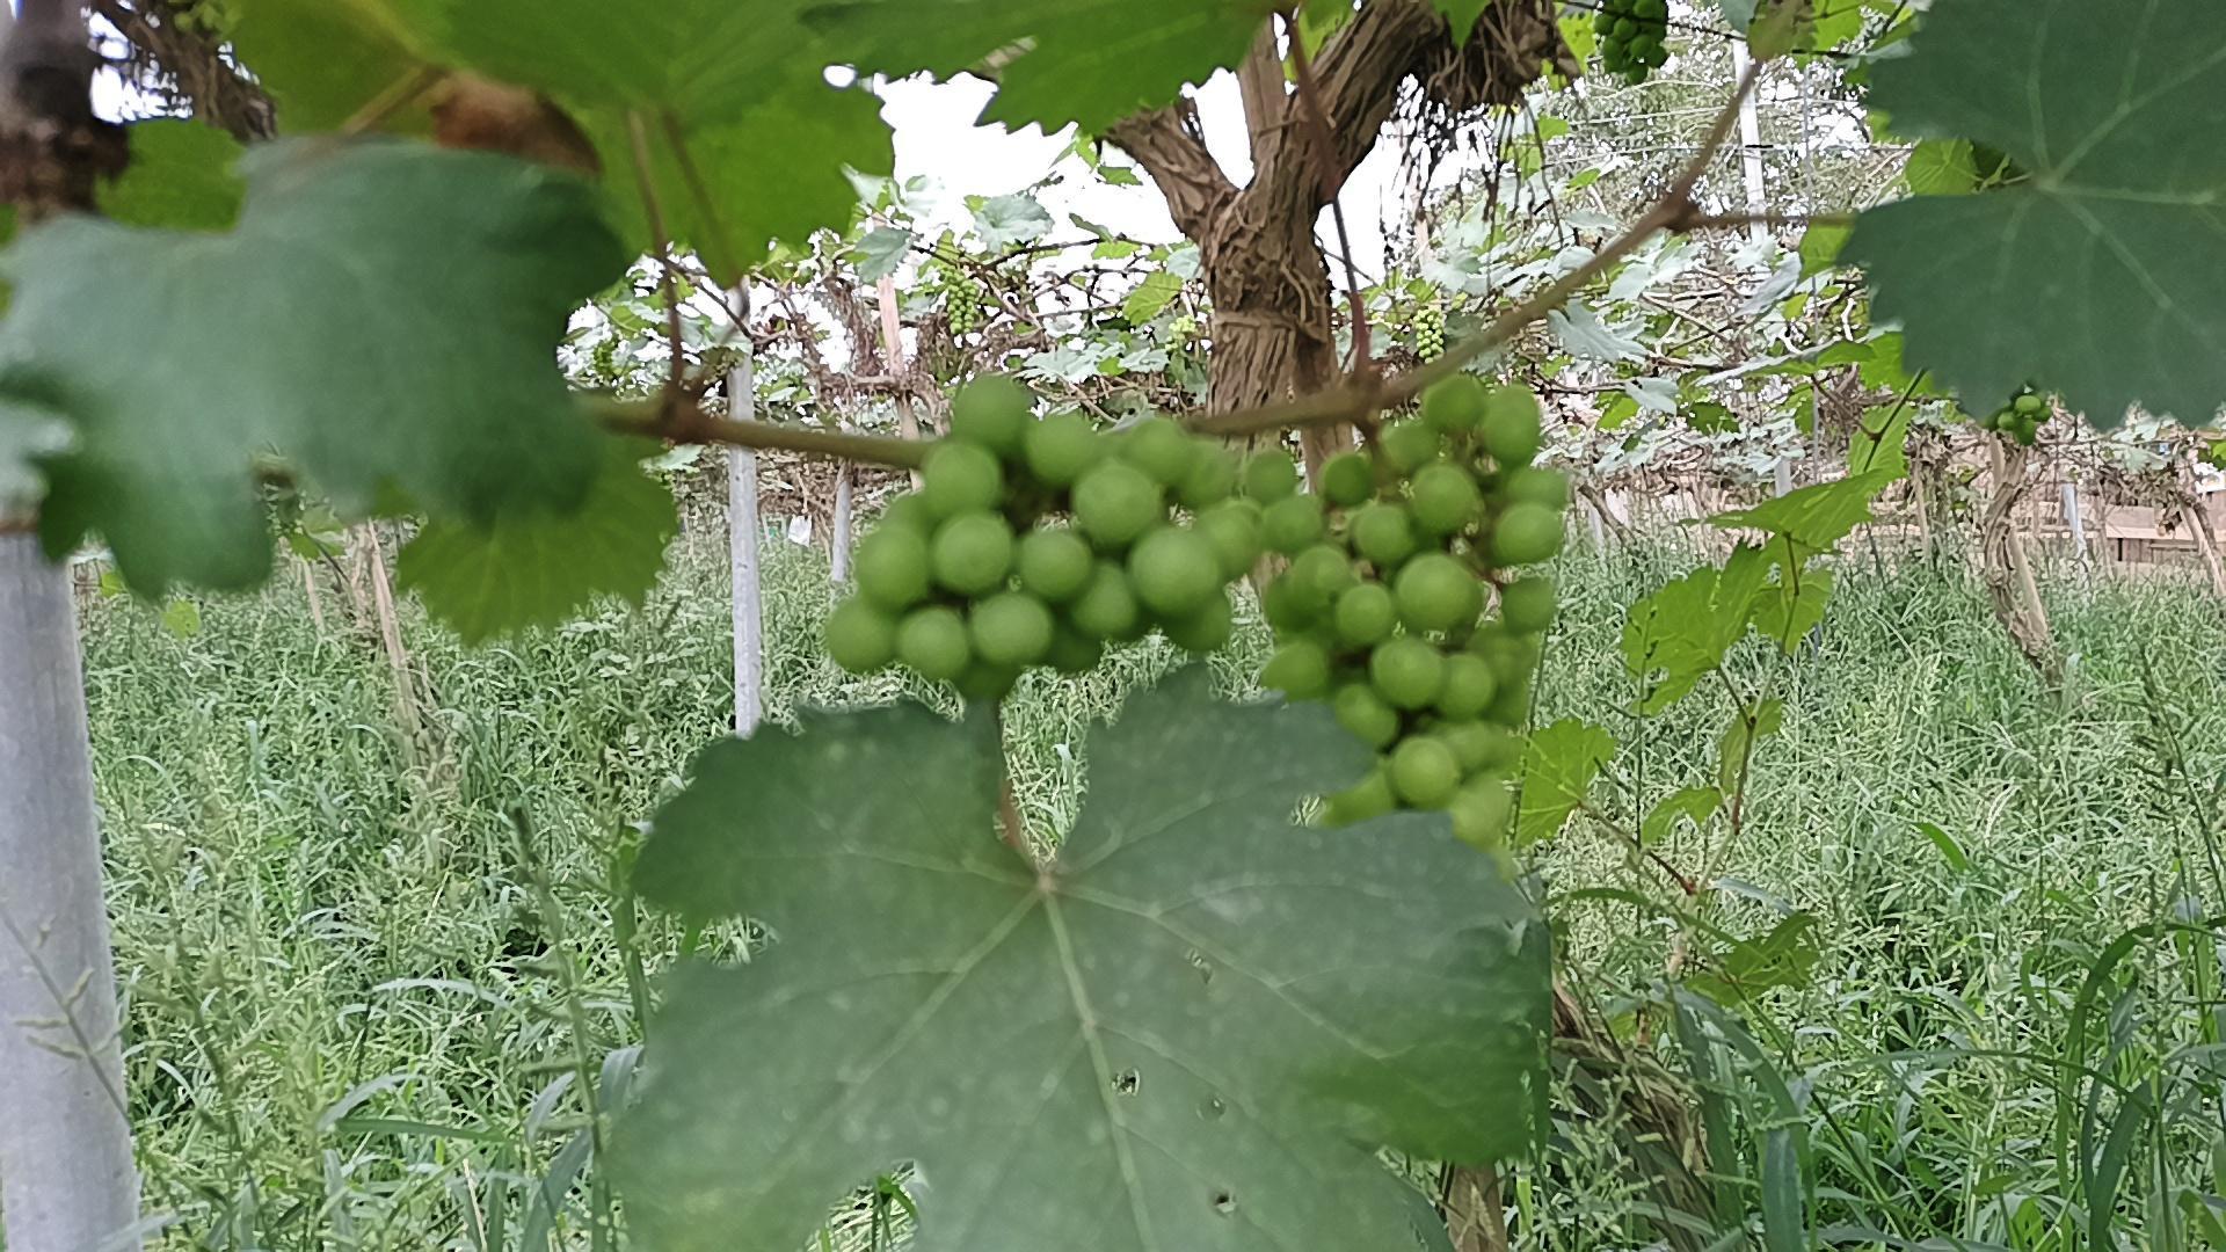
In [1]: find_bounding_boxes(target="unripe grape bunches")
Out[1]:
[1593,0,1671,86]
[1981,384,2053,446]
[1245,376,1569,852]
[824,378,1258,700]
